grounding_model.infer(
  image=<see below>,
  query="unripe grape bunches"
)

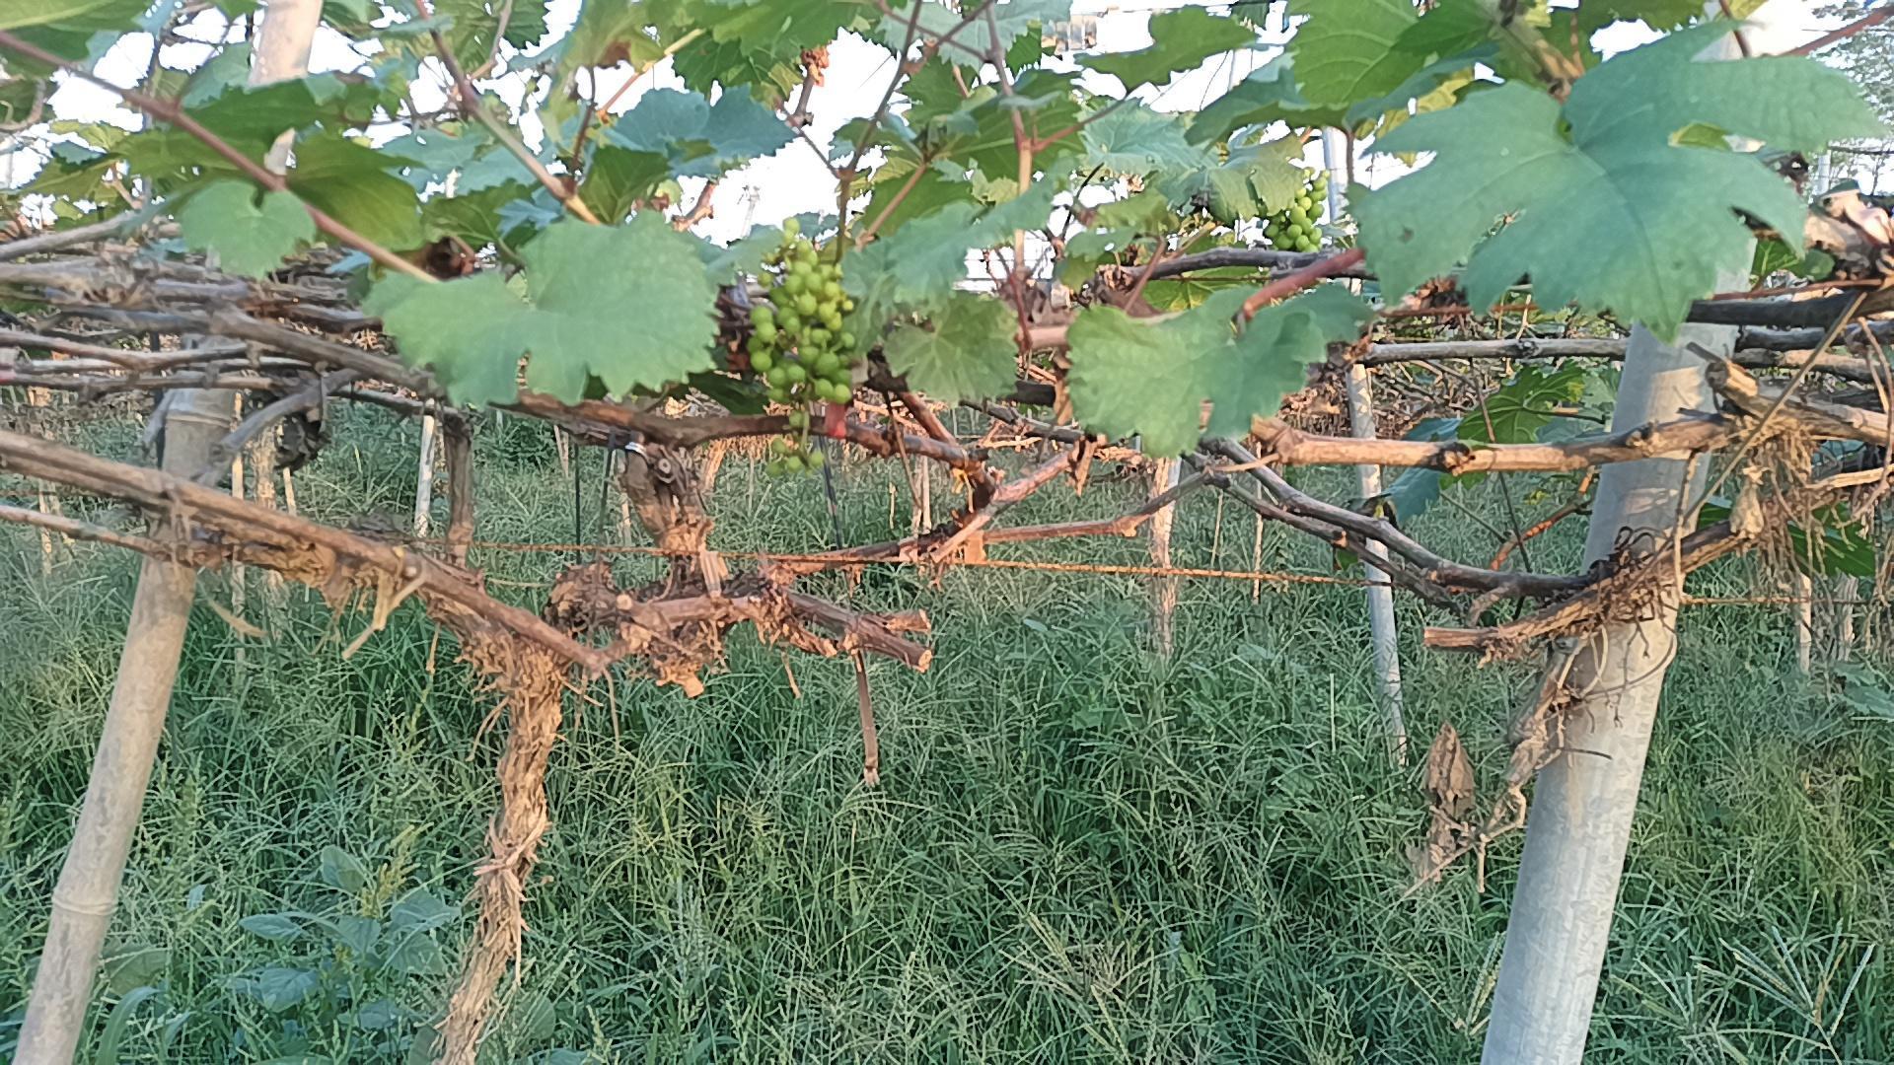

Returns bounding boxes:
[1260,168,1337,249]
[745,219,855,417]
